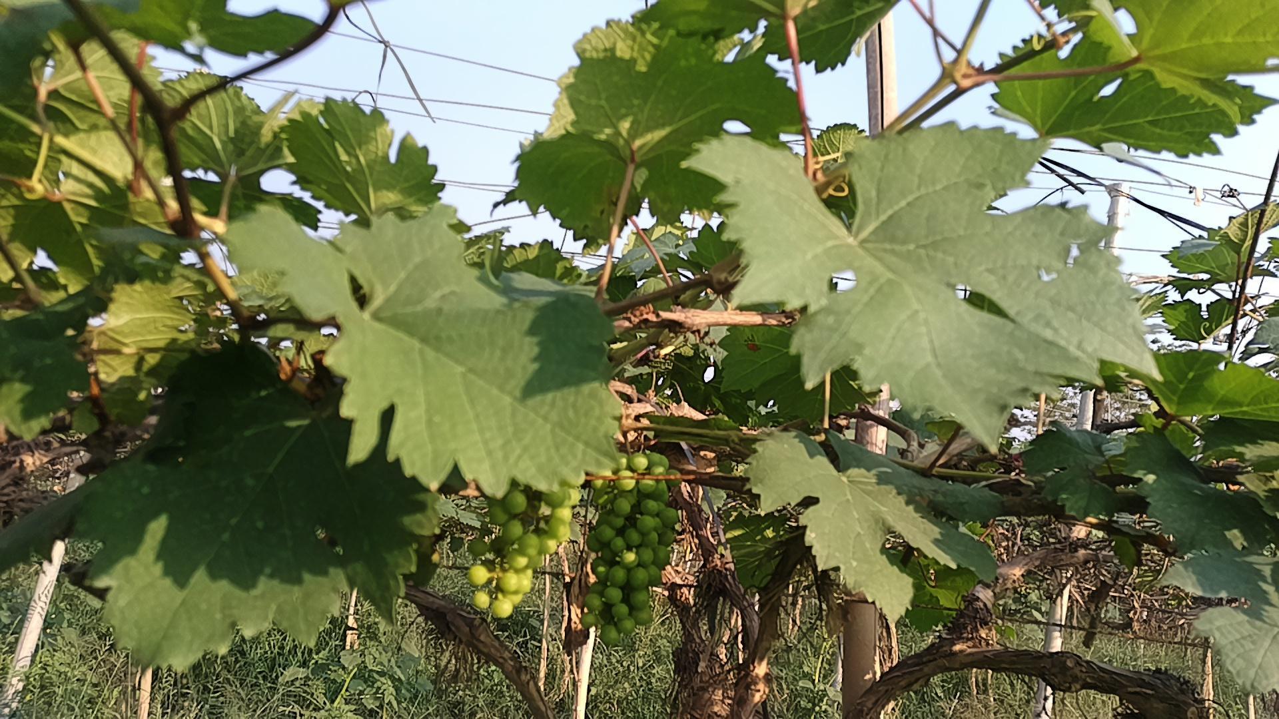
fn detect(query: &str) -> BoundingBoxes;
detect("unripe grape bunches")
[580,452,681,645]
[466,486,578,618]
